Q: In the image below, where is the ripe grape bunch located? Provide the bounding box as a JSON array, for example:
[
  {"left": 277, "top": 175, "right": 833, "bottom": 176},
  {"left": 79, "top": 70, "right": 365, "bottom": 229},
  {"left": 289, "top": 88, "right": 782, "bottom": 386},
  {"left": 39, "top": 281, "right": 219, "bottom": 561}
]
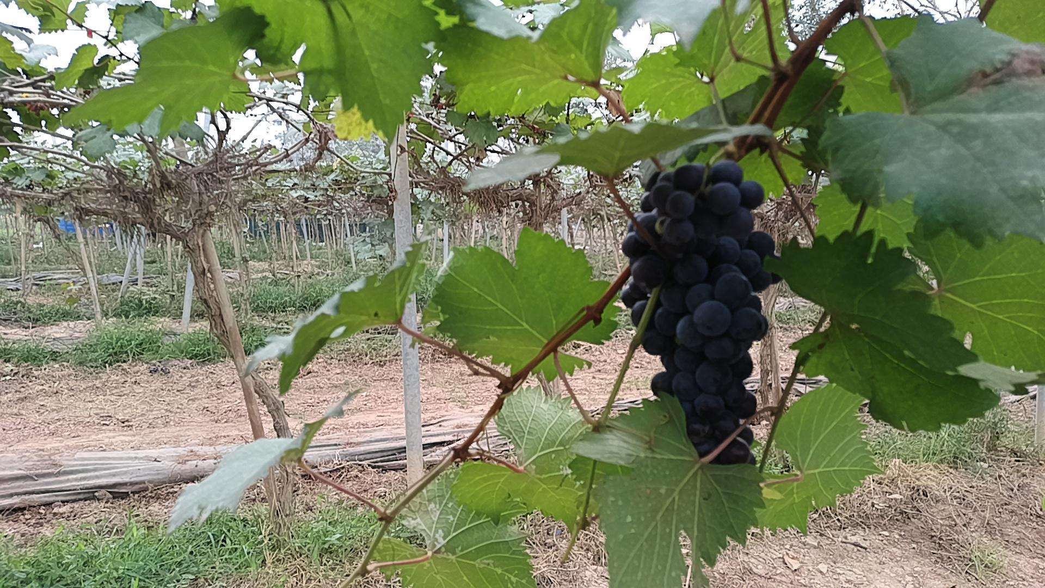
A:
[{"left": 622, "top": 161, "right": 779, "bottom": 467}]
